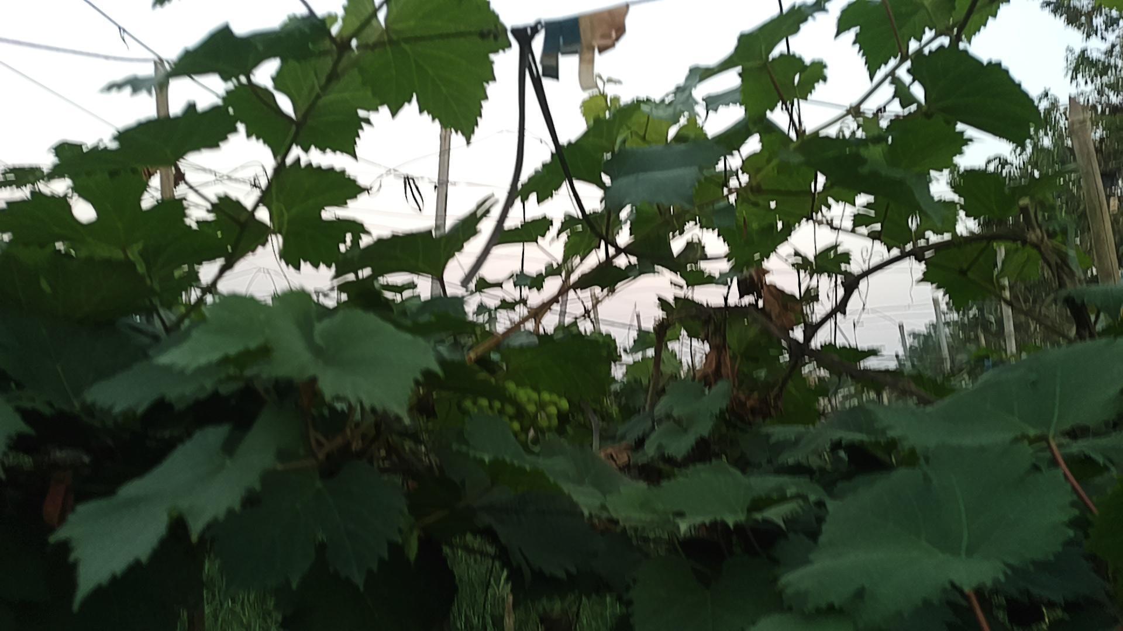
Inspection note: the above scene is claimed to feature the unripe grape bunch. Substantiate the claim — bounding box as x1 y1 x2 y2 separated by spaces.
457 378 569 443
